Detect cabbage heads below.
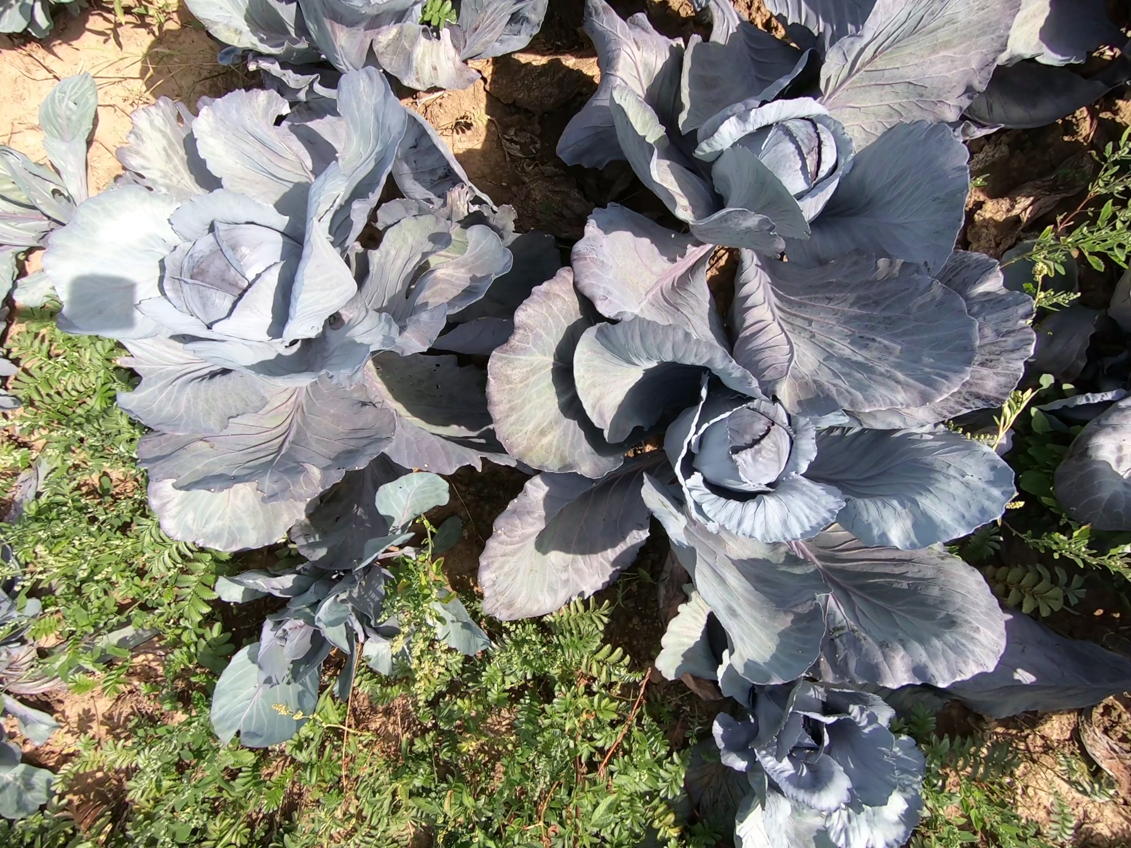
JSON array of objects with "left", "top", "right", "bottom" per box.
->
[
  {"left": 782, "top": 714, "right": 828, "bottom": 763},
  {"left": 697, "top": 402, "right": 791, "bottom": 487},
  {"left": 721, "top": 113, "right": 844, "bottom": 220},
  {"left": 179, "top": 224, "right": 319, "bottom": 341}
]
